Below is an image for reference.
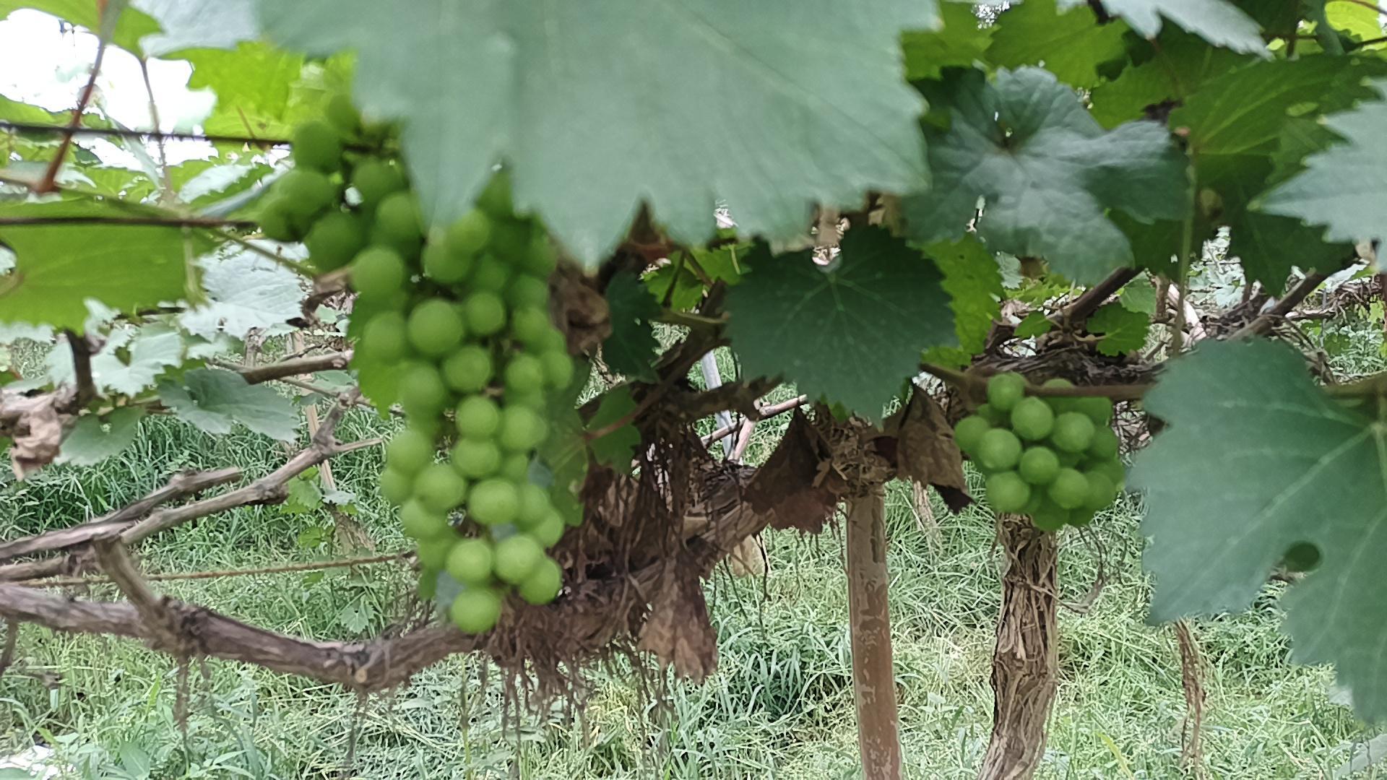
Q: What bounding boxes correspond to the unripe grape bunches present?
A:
[256,95,574,633]
[954,370,1124,531]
